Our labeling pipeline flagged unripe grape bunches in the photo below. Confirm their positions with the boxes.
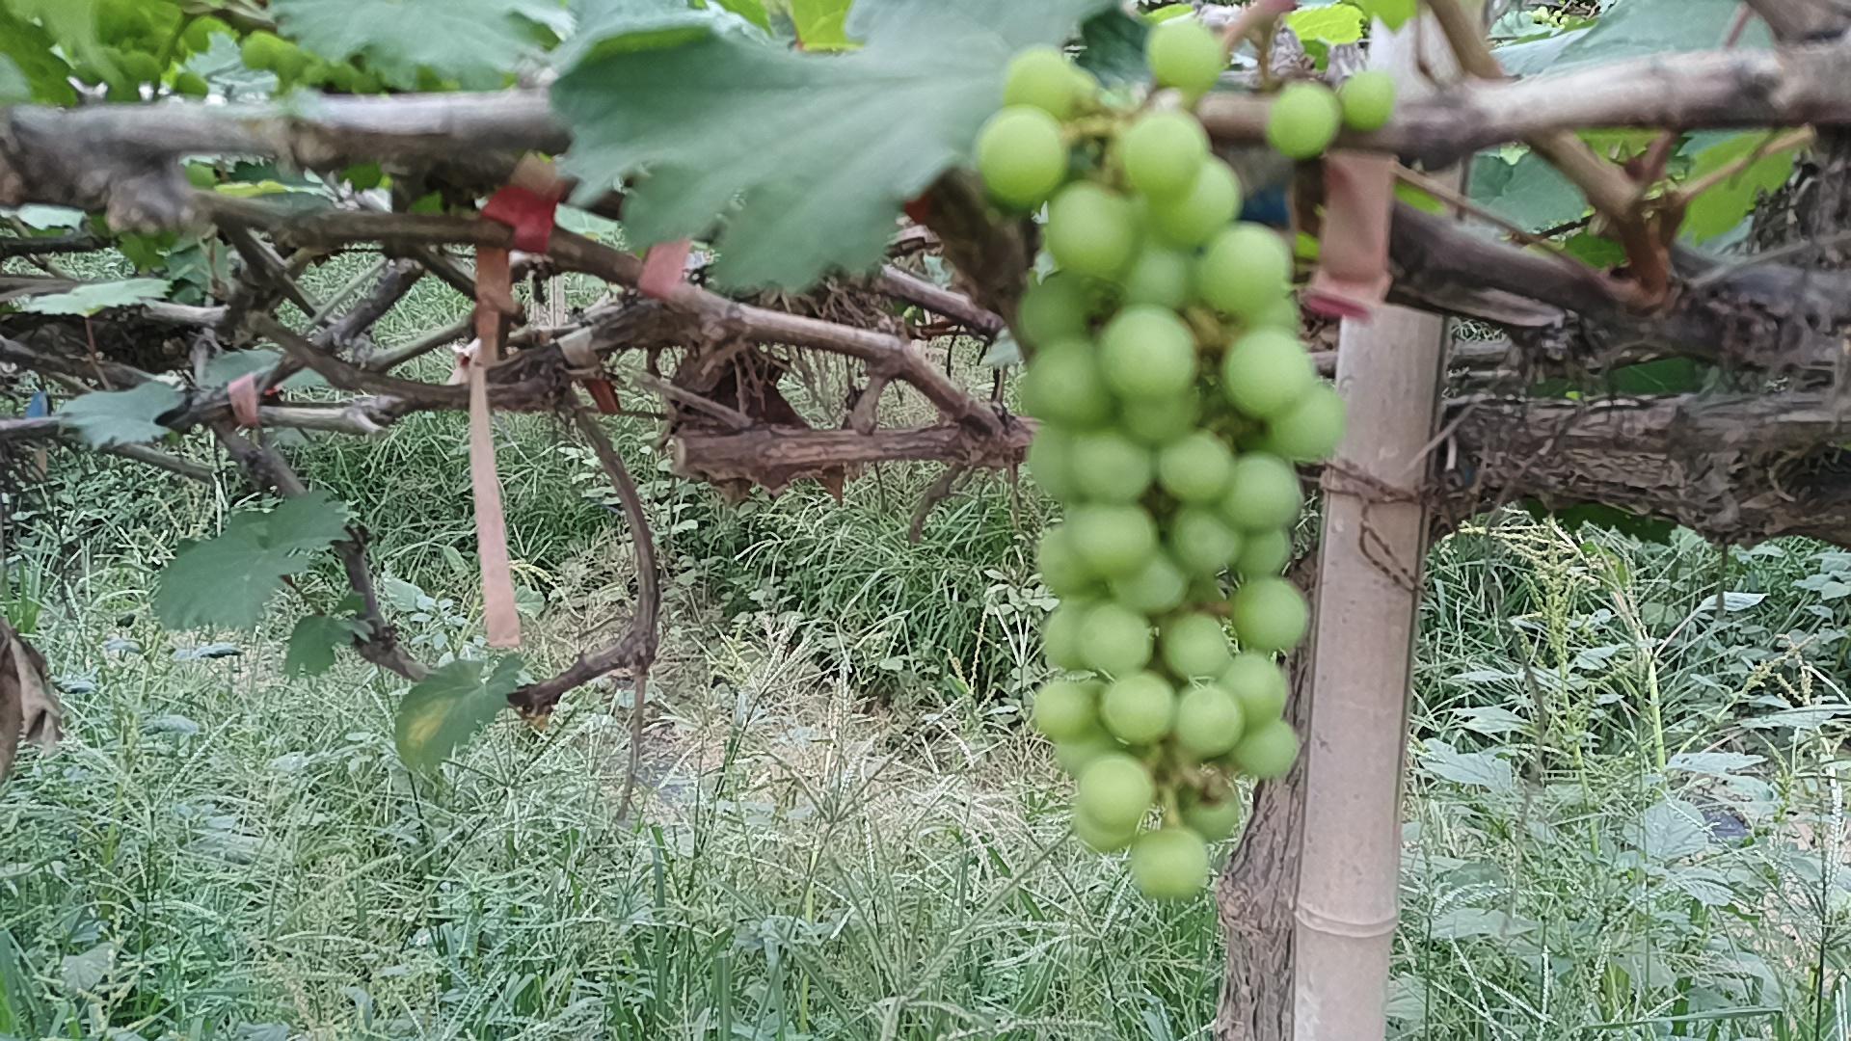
[76,6,215,259]
[979,16,1395,898]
